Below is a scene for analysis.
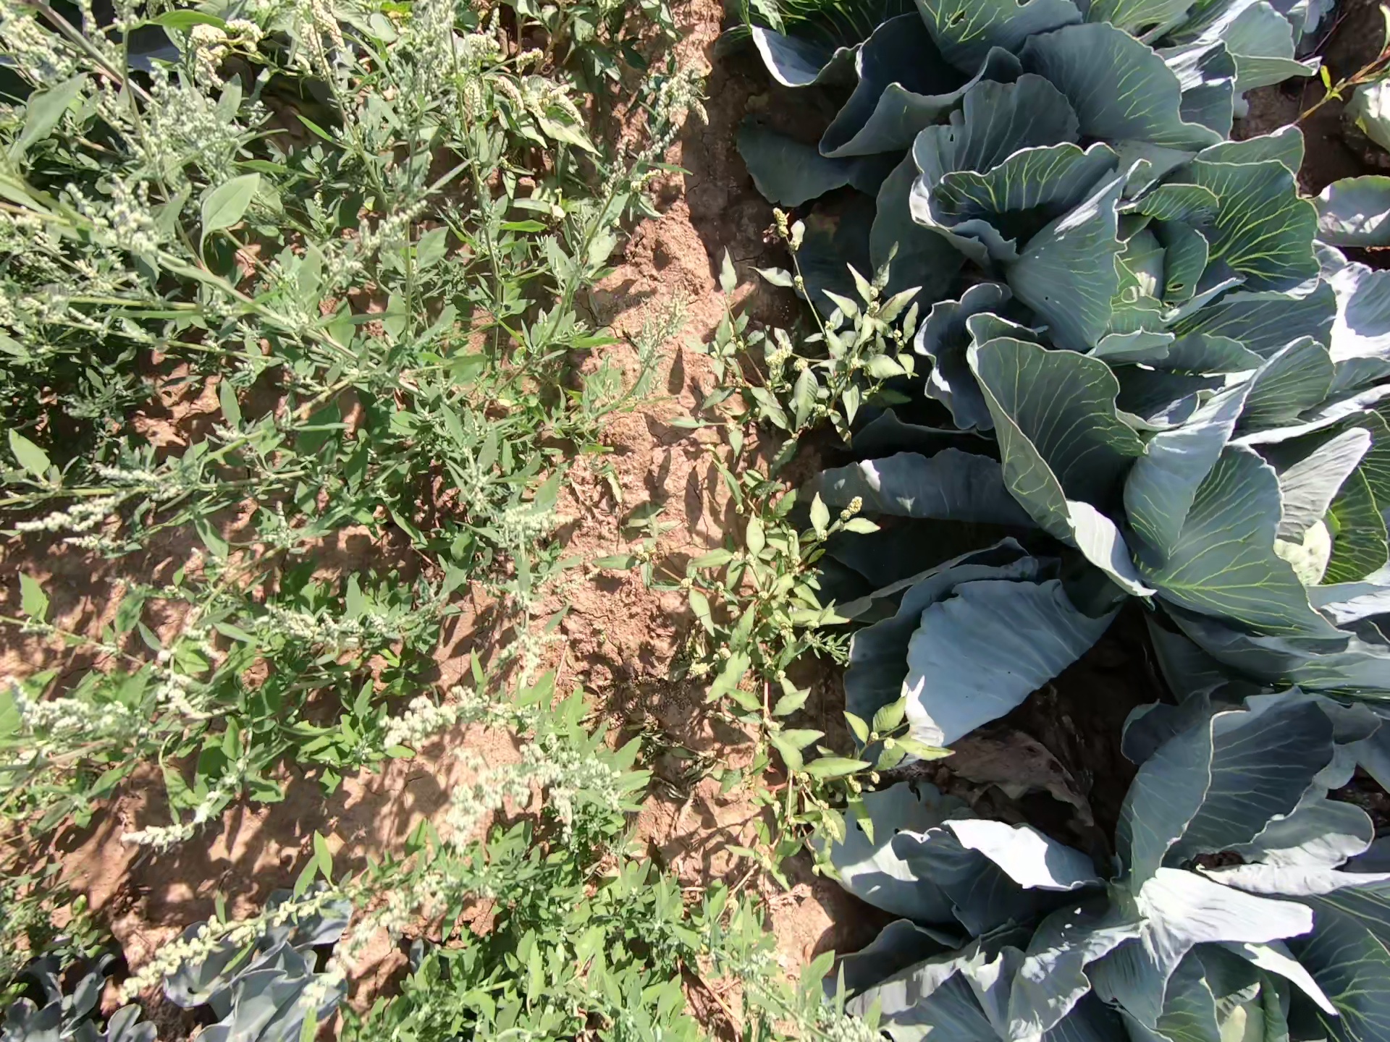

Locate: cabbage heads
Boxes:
[1171,474,1335,605]
[1048,215,1162,334]
[1135,913,1297,1040]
